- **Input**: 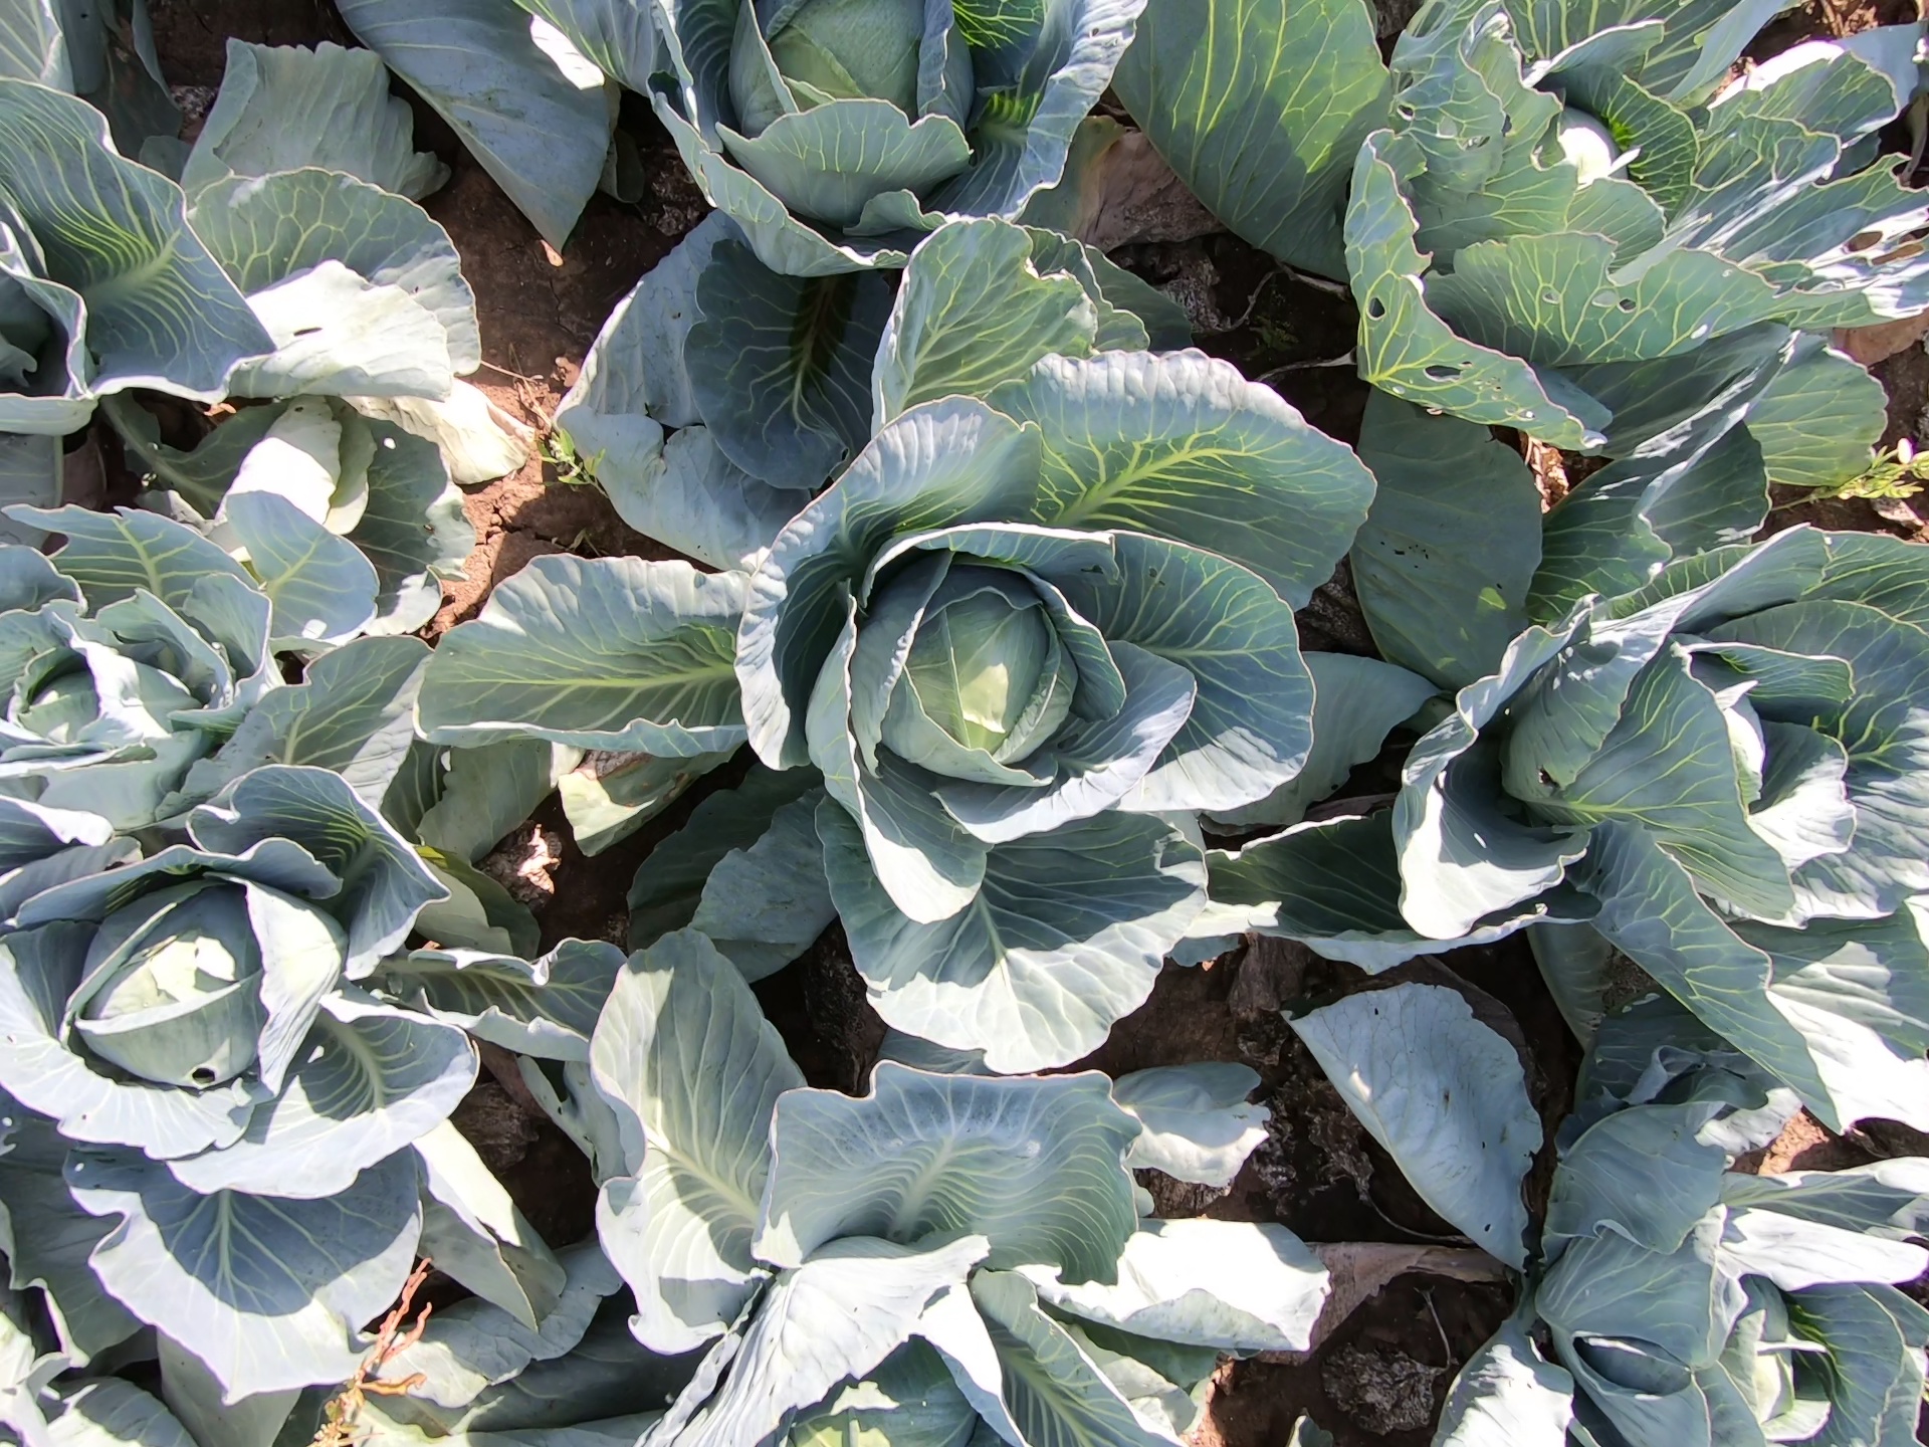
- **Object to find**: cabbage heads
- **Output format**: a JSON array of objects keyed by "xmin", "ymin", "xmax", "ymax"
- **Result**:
[
  {"xmin": 1614, "ymin": 1241, "xmax": 1796, "ymax": 1434},
  {"xmin": 1596, "ymin": 664, "xmax": 1766, "ymax": 813},
  {"xmin": 776, "ymin": 1241, "xmax": 986, "ymax": 1443},
  {"xmin": 17, "ymin": 664, "xmax": 191, "ymax": 785},
  {"xmin": 872, "ymin": 556, "xmax": 1078, "ymax": 770},
  {"xmin": 1473, "ymin": 102, "xmax": 1636, "ymax": 263},
  {"xmin": 735, "ymin": 2, "xmax": 974, "ymax": 195},
  {"xmin": 75, "ymin": 868, "xmax": 319, "ymax": 1097}
]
